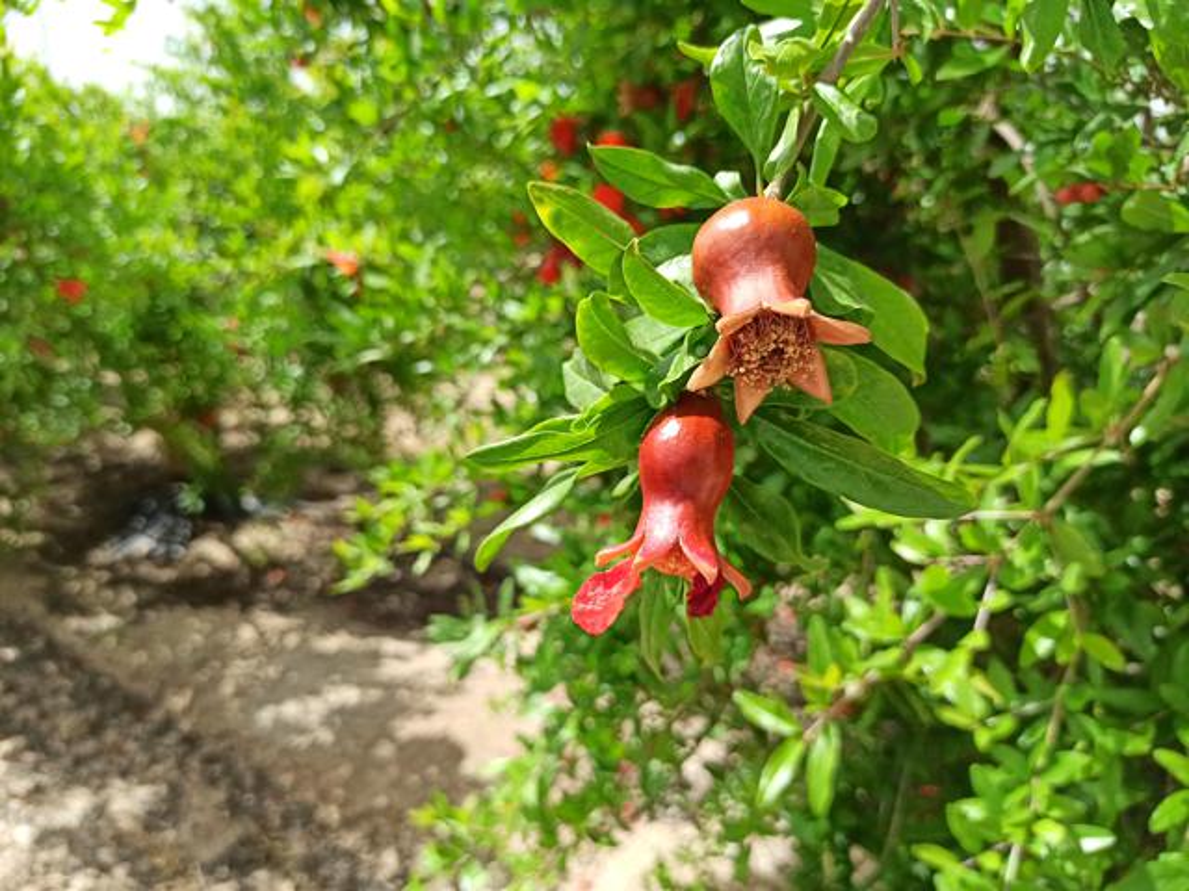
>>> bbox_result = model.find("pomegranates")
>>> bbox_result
[684,197,877,427]
[594,394,756,600]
